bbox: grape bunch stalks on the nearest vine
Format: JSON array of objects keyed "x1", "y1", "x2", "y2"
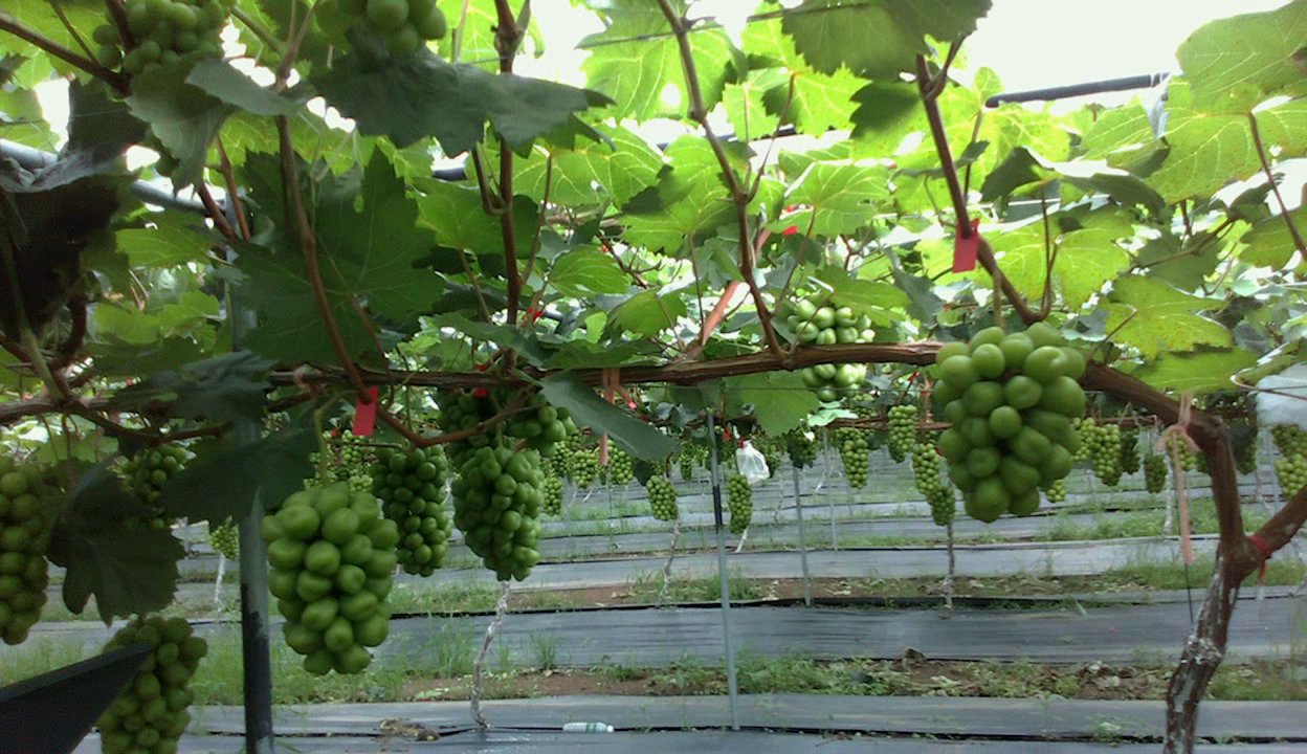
[
  {"x1": 978, "y1": 236, "x2": 1004, "y2": 329},
  {"x1": 495, "y1": 421, "x2": 503, "y2": 447},
  {"x1": 312, "y1": 390, "x2": 357, "y2": 487},
  {"x1": 131, "y1": 447, "x2": 156, "y2": 626}
]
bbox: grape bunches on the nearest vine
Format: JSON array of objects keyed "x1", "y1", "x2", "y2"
[
  {"x1": 1, "y1": 457, "x2": 48, "y2": 644},
  {"x1": 449, "y1": 446, "x2": 545, "y2": 582},
  {"x1": 94, "y1": 615, "x2": 207, "y2": 753},
  {"x1": 260, "y1": 481, "x2": 401, "y2": 675},
  {"x1": 933, "y1": 323, "x2": 1086, "y2": 522}
]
